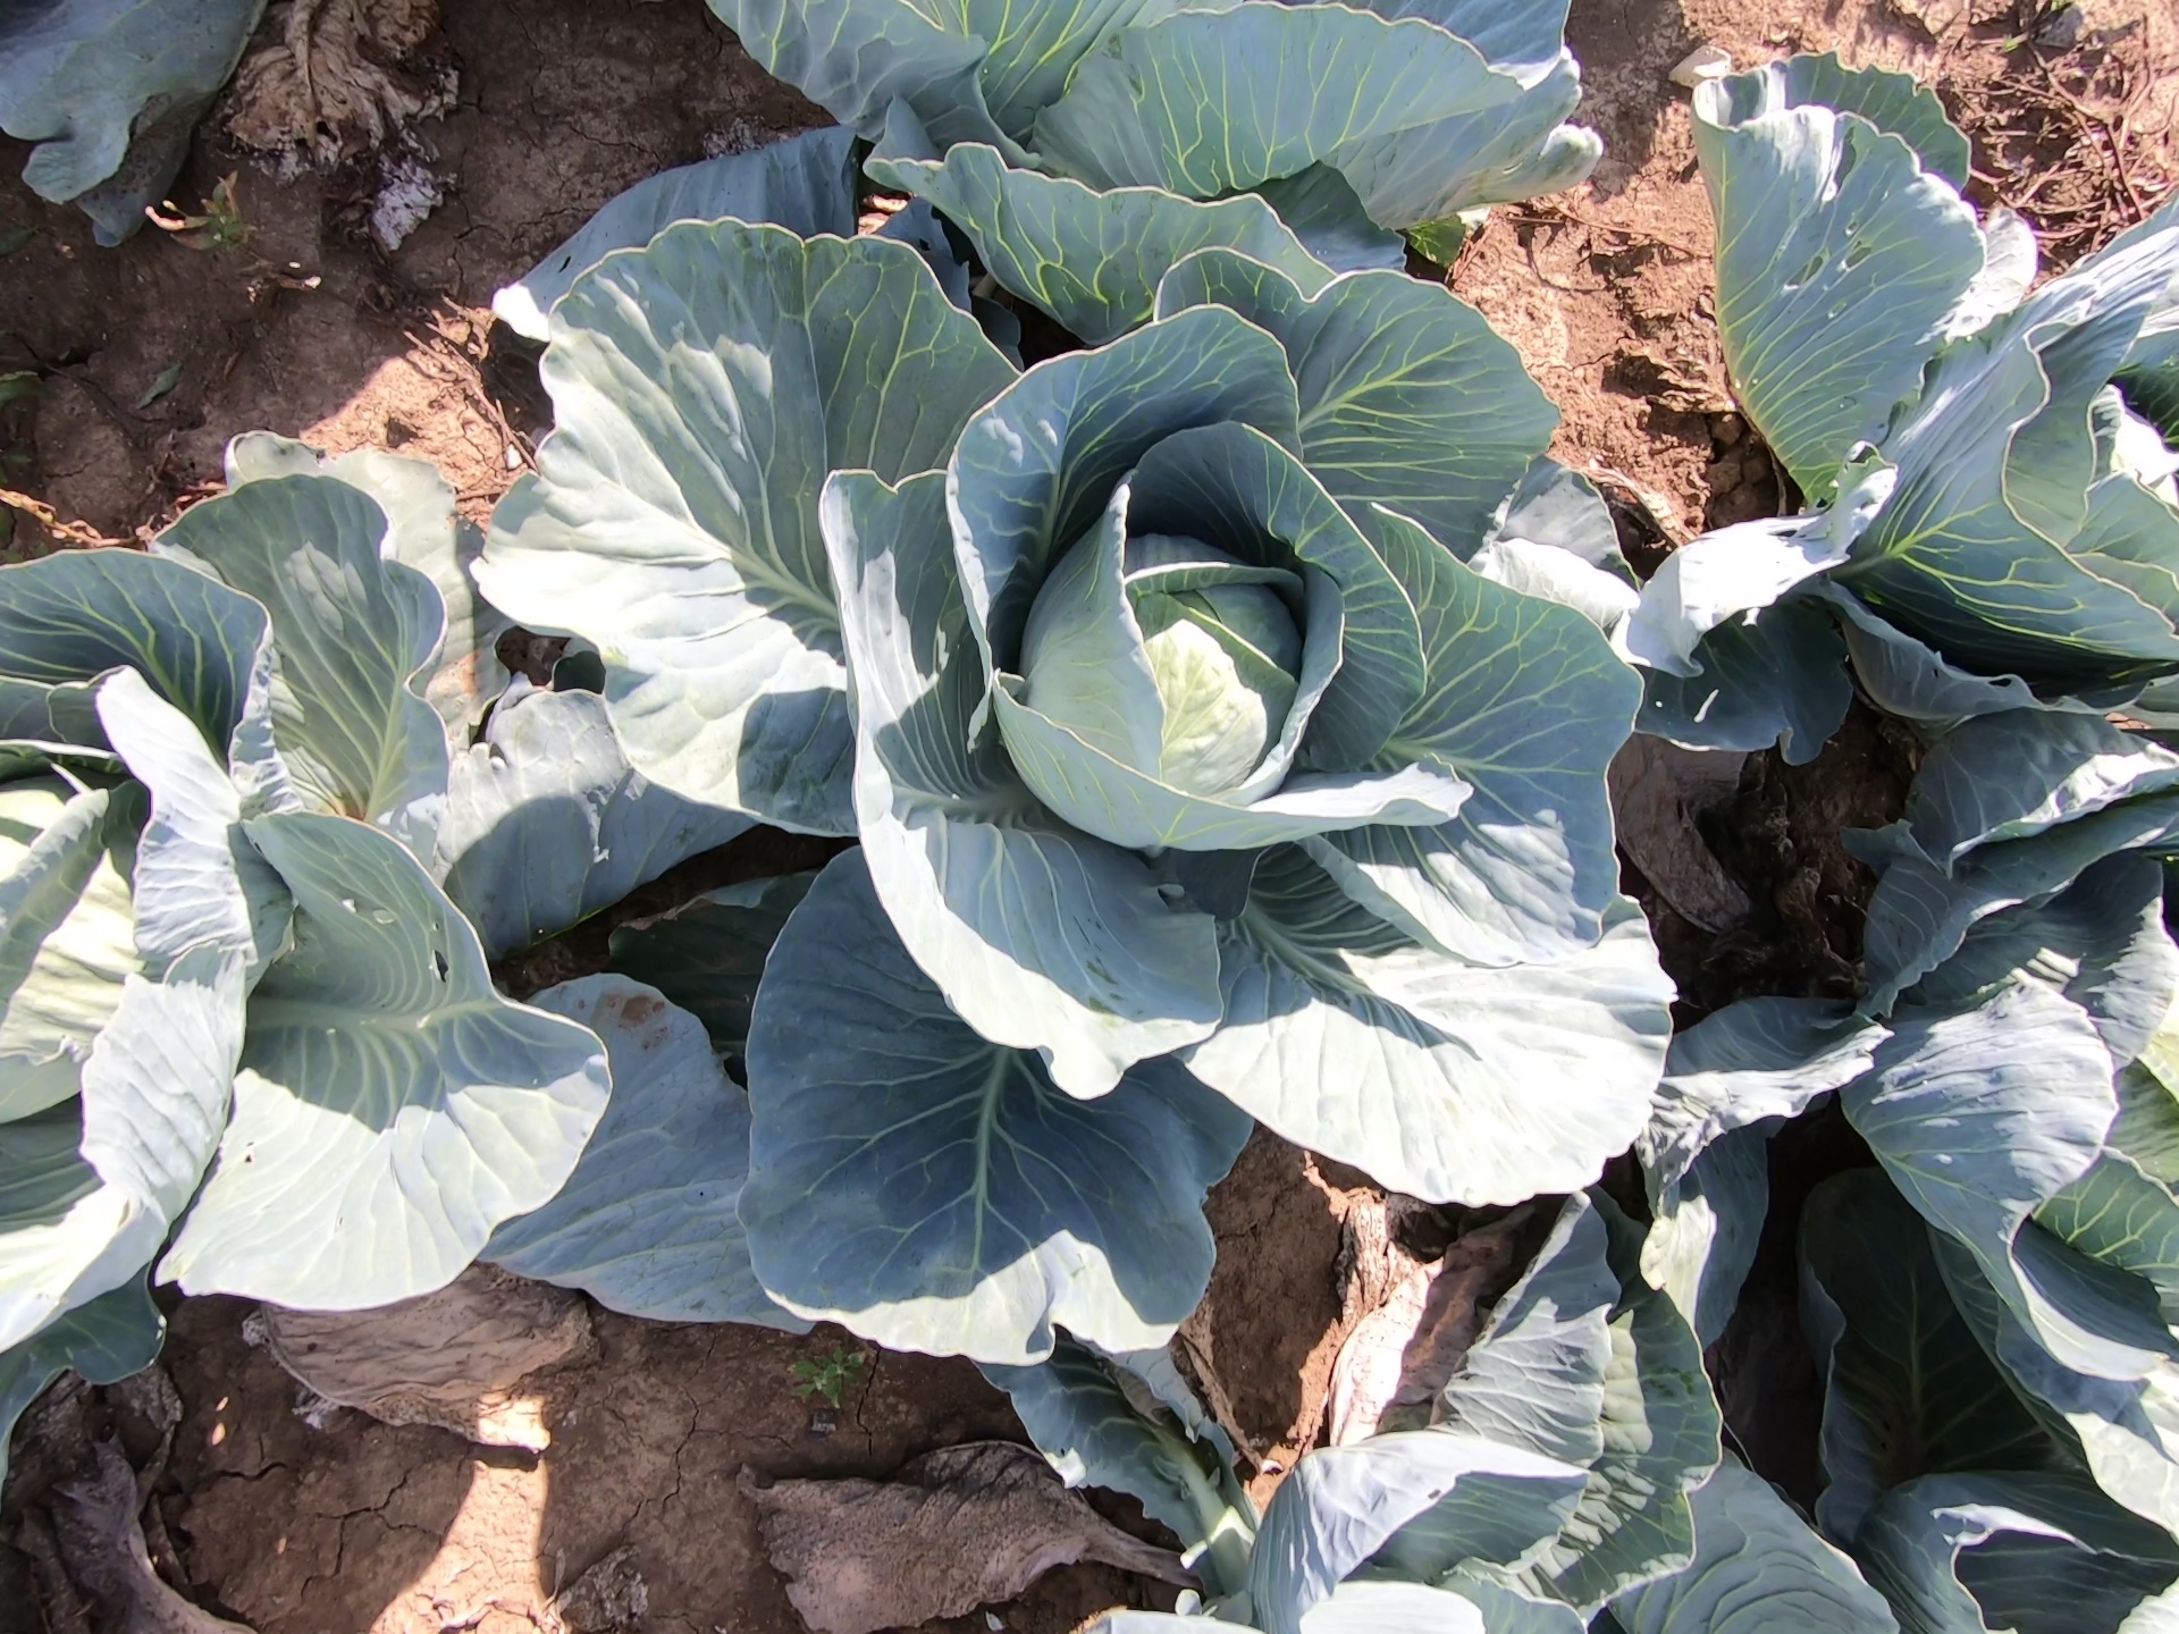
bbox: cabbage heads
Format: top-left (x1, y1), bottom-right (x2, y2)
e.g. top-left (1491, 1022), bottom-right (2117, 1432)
top-left (1971, 380), bottom-right (2174, 605)
top-left (2, 767), bottom-right (244, 1128)
top-left (1944, 912), bottom-right (2177, 1213)
top-left (1019, 534), bottom-right (1314, 816)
